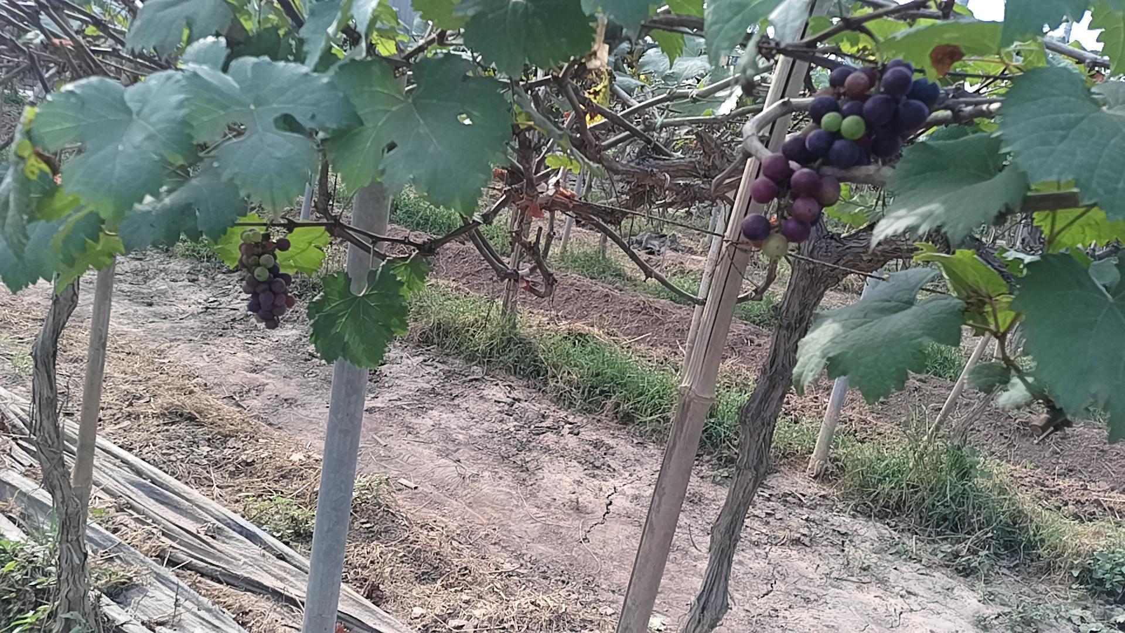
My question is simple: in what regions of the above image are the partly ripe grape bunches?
[741,59,939,258]
[238,229,295,328]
